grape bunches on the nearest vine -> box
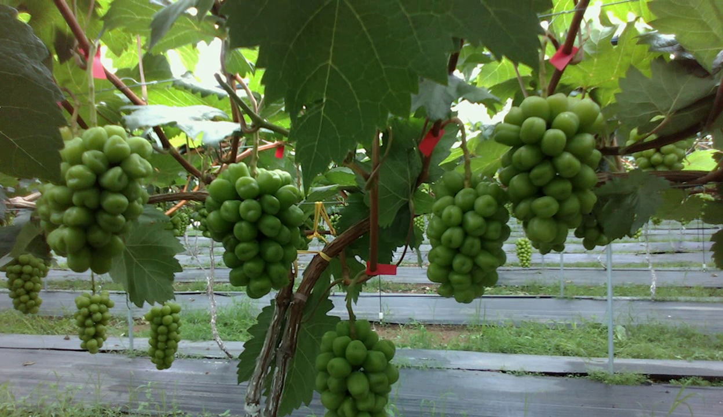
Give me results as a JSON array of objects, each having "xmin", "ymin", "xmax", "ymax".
[
  {"xmin": 206, "ymin": 162, "xmax": 304, "ymax": 298},
  {"xmin": 36, "ymin": 126, "xmax": 154, "ymax": 275},
  {"xmin": 493, "ymin": 92, "xmax": 617, "ymax": 255},
  {"xmin": 426, "ymin": 170, "xmax": 512, "ymax": 303},
  {"xmin": 316, "ymin": 320, "xmax": 399, "ymax": 416}
]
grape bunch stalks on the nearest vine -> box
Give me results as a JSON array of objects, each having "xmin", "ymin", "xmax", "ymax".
[
  {"xmin": 539, "ymin": 28, "xmax": 560, "ymax": 97},
  {"xmin": 440, "ymin": 118, "xmax": 472, "ymax": 186},
  {"xmin": 86, "ymin": 38, "xmax": 98, "ymax": 127},
  {"xmin": 346, "ymin": 269, "xmax": 367, "ymax": 338},
  {"xmin": 234, "ymin": 74, "xmax": 261, "ymax": 180}
]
